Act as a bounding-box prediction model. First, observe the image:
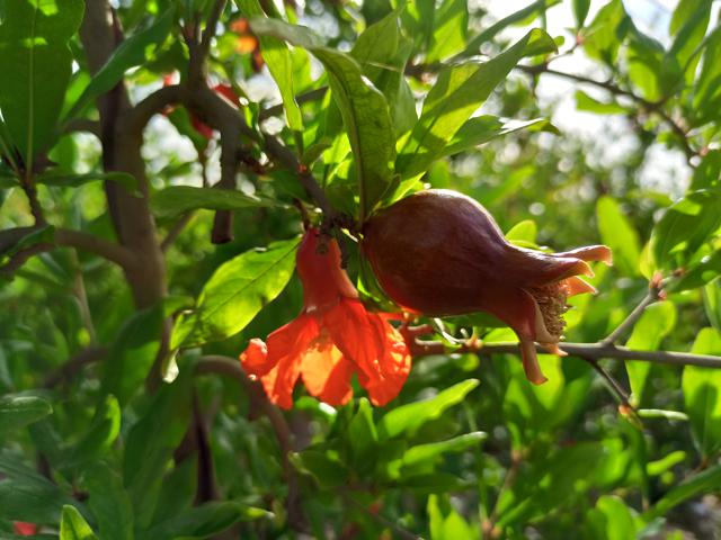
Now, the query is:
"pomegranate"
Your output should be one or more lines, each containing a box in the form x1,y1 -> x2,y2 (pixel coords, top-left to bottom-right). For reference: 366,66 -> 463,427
365,189 -> 612,385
